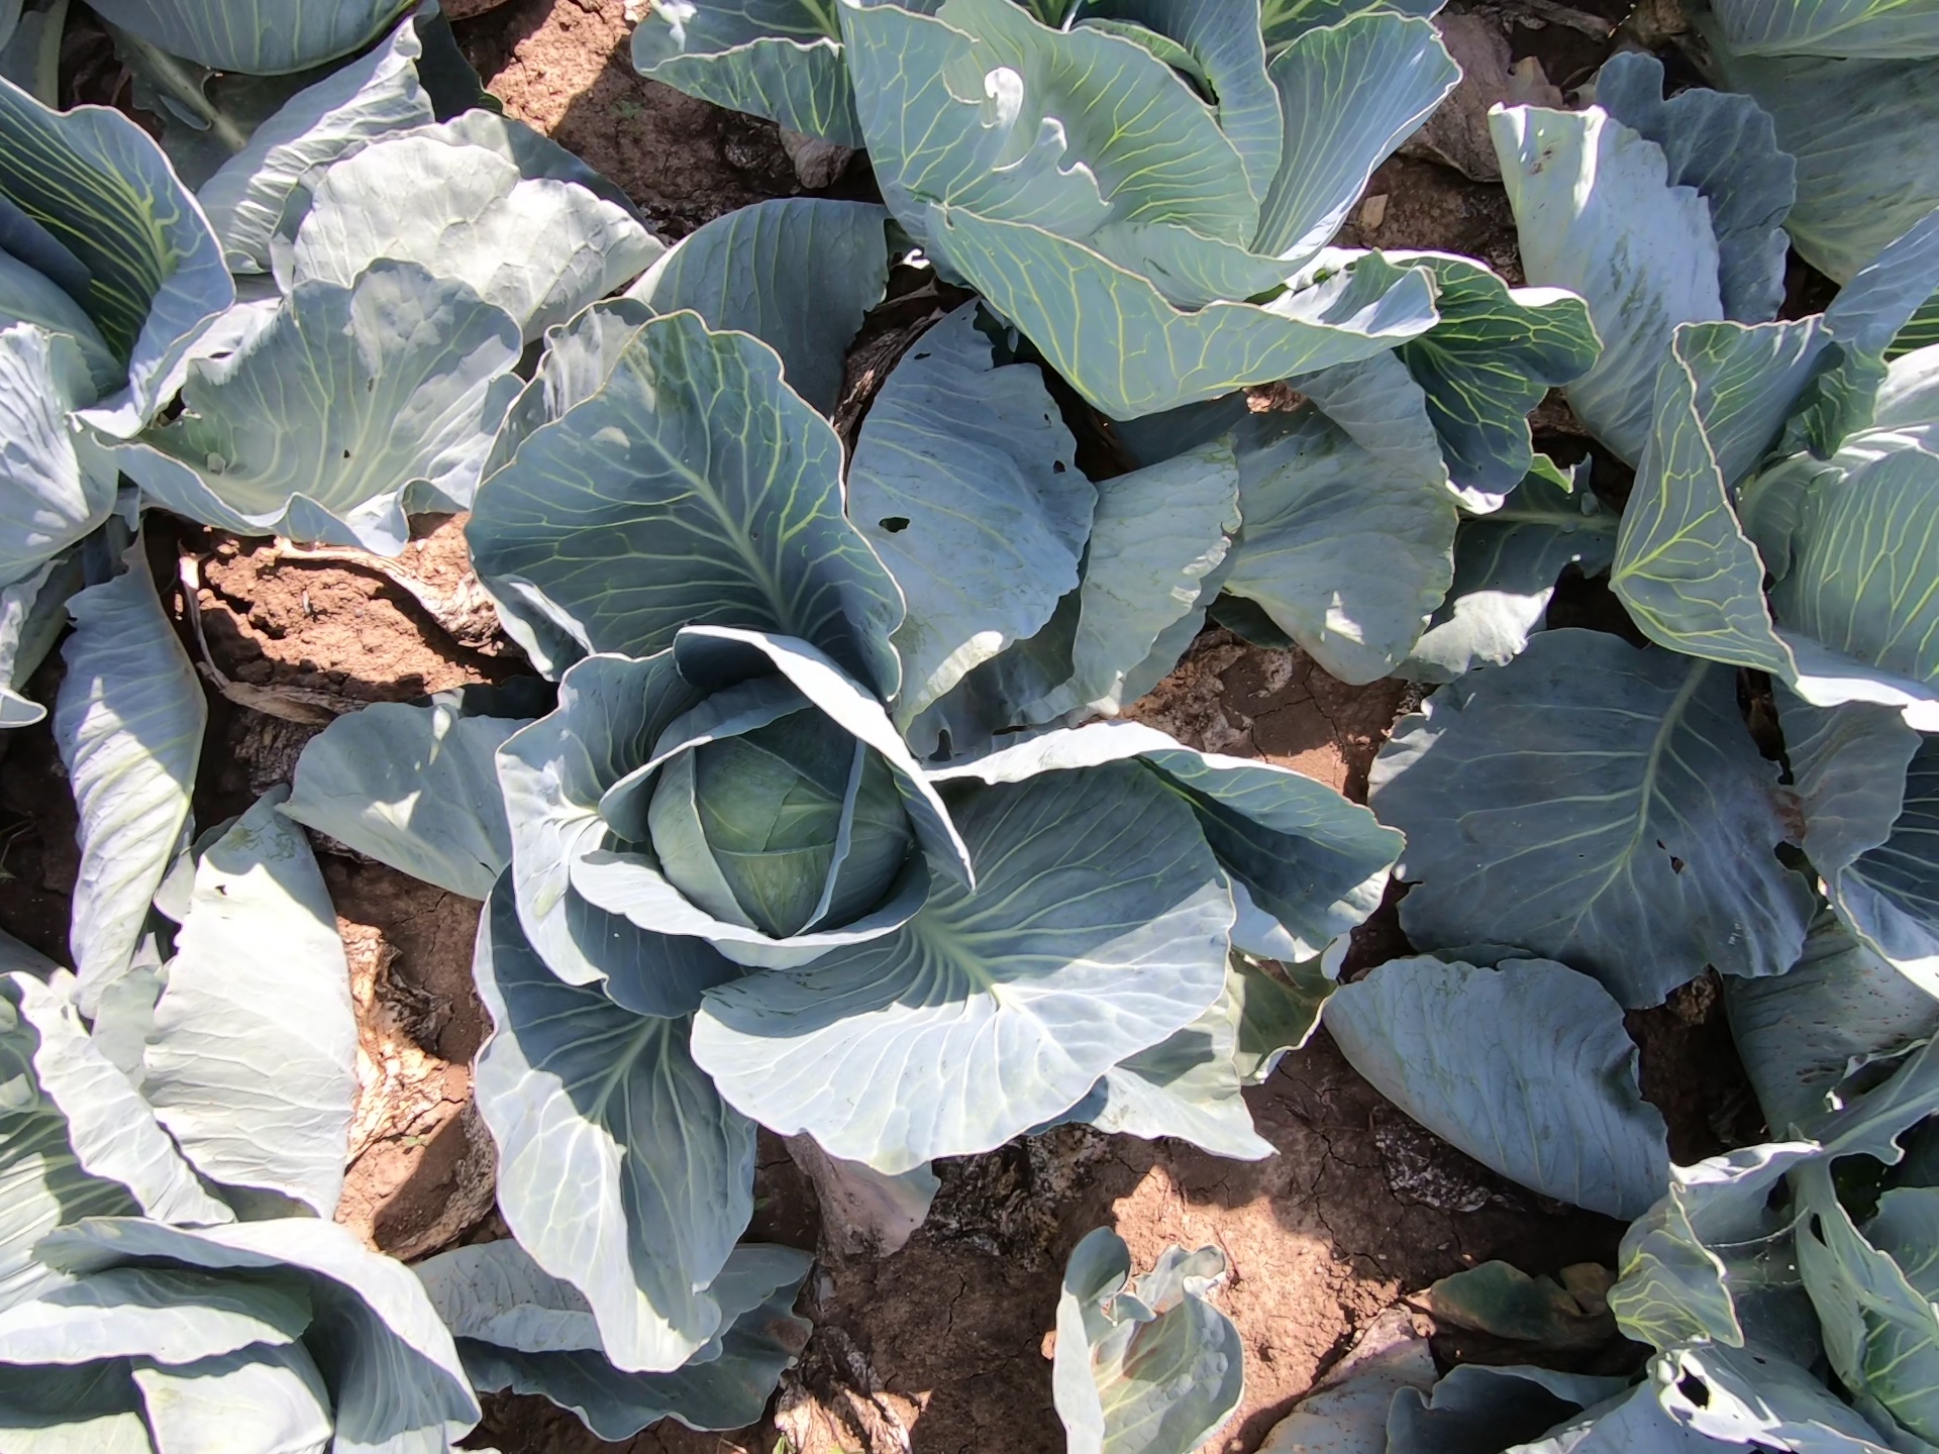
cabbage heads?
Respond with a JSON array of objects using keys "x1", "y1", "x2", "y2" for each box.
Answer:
[
  {"x1": 652, "y1": 681, "x2": 914, "y2": 937},
  {"x1": 4, "y1": 1275, "x2": 319, "y2": 1452}
]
